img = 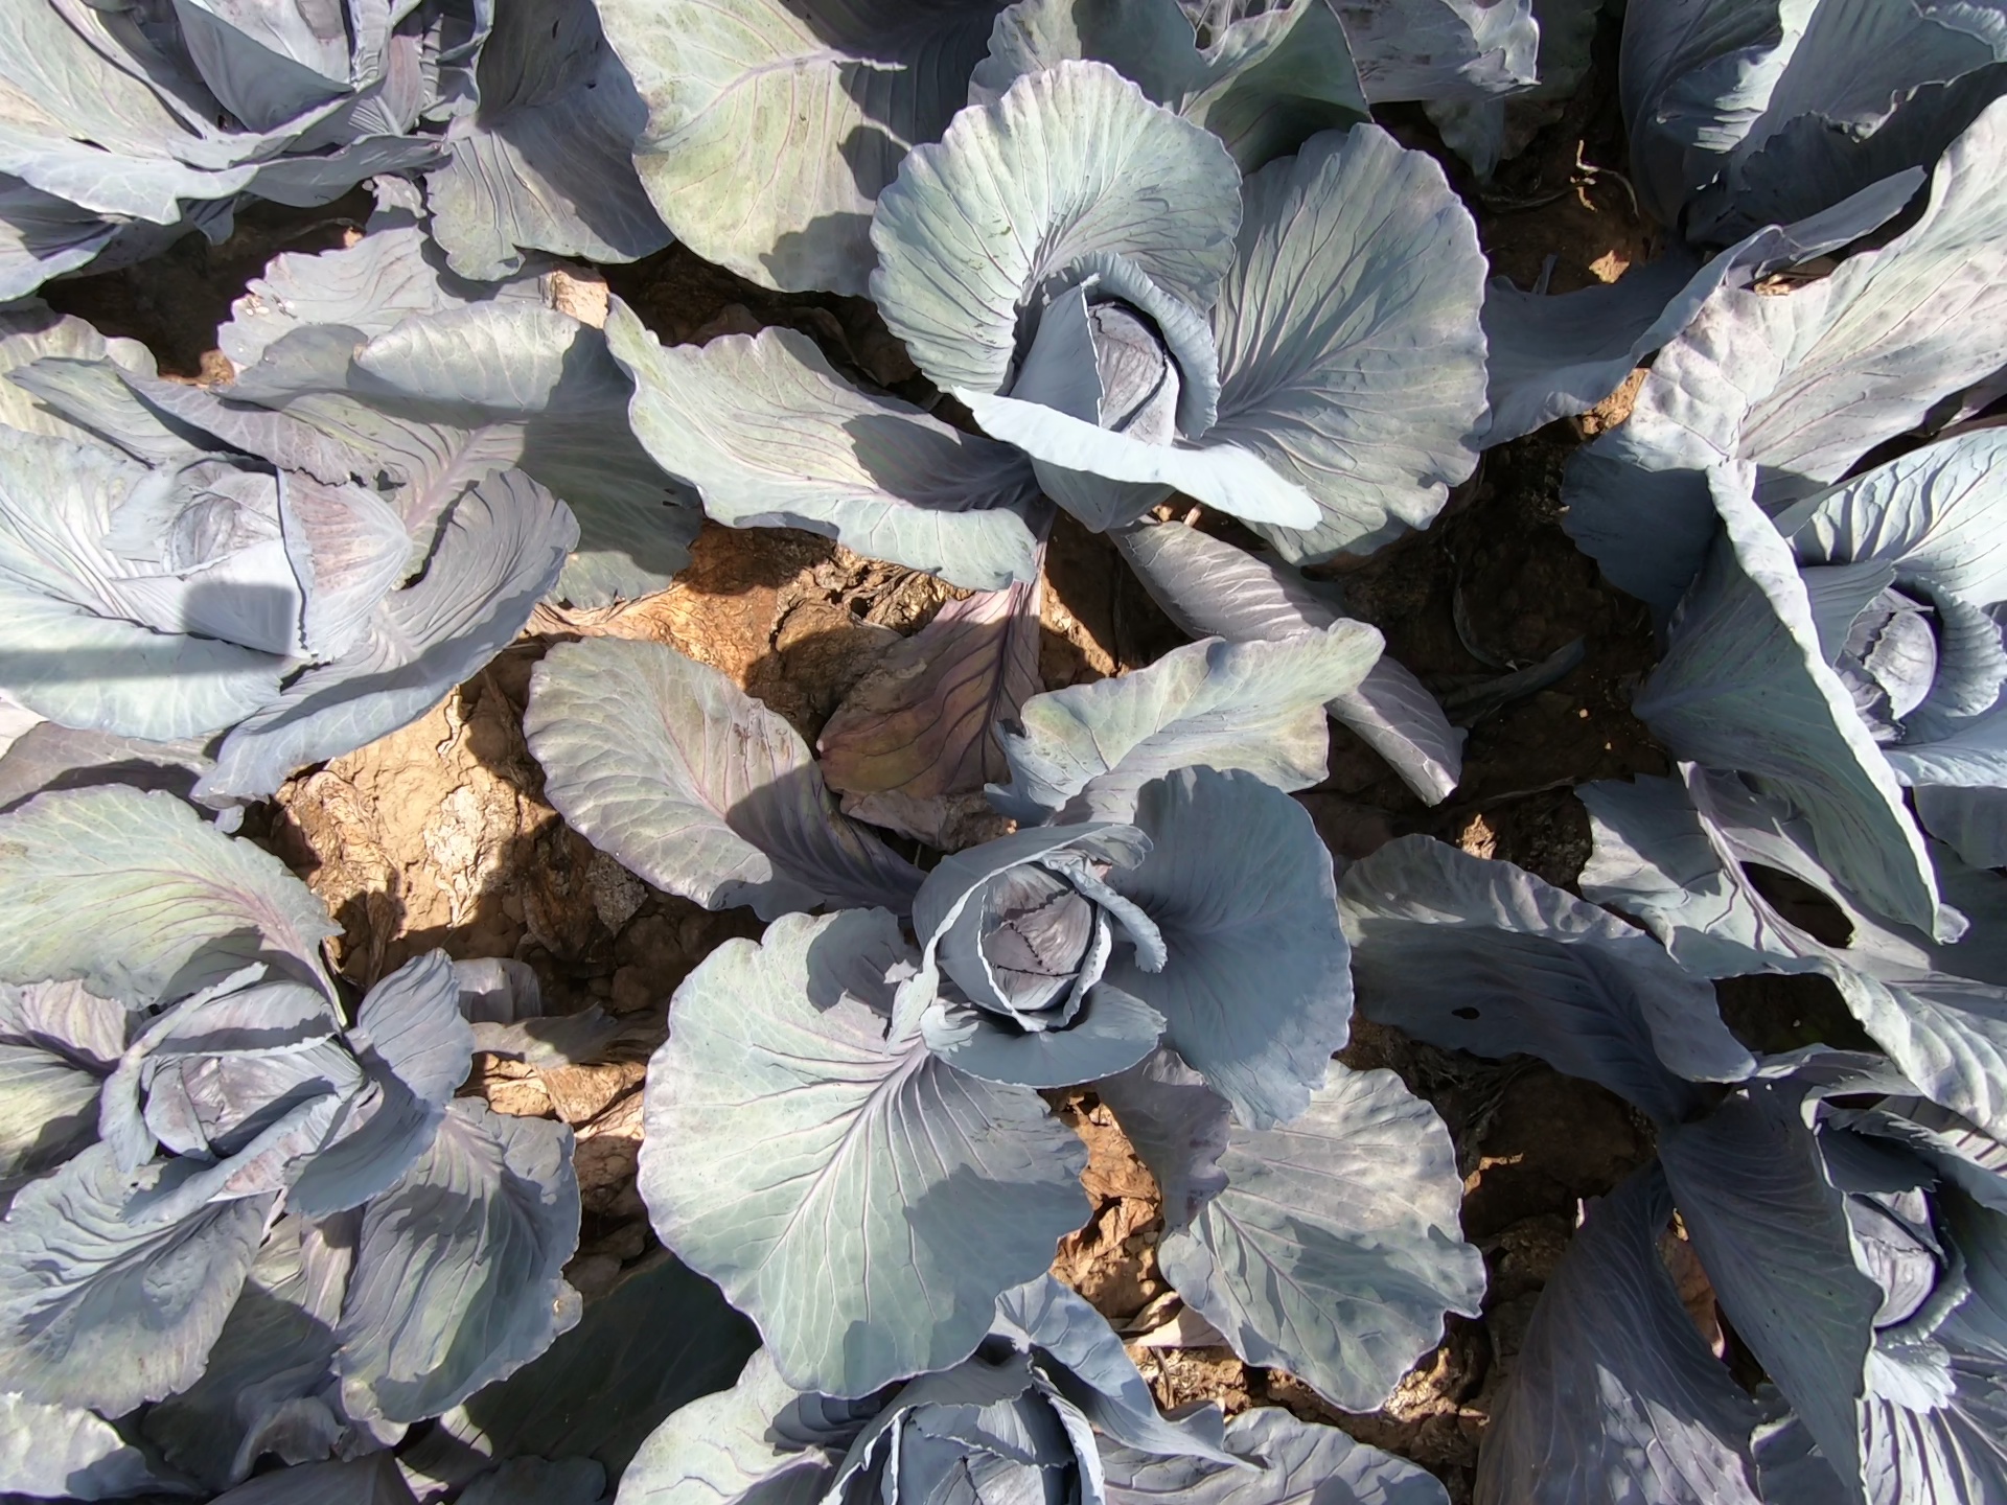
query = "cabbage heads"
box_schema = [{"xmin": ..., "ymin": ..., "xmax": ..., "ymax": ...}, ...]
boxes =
[
  {"xmin": 164, "ymin": 470, "xmax": 399, "ymax": 631},
  {"xmin": 1752, "ymin": 574, "xmax": 1937, "ymax": 744},
  {"xmin": 1763, "ymin": 1143, "xmax": 1942, "ymax": 1330},
  {"xmin": 1026, "ymin": 301, "xmax": 1180, "ymax": 493},
  {"xmin": 145, "ymin": 1018, "xmax": 353, "ymax": 1167},
  {"xmin": 881, "ymin": 1375, "xmax": 1056, "ymax": 1500},
  {"xmin": 183, "ymin": 0, "xmax": 383, "ymax": 118},
  {"xmin": 944, "ymin": 848, "xmax": 1115, "ymax": 1011}
]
